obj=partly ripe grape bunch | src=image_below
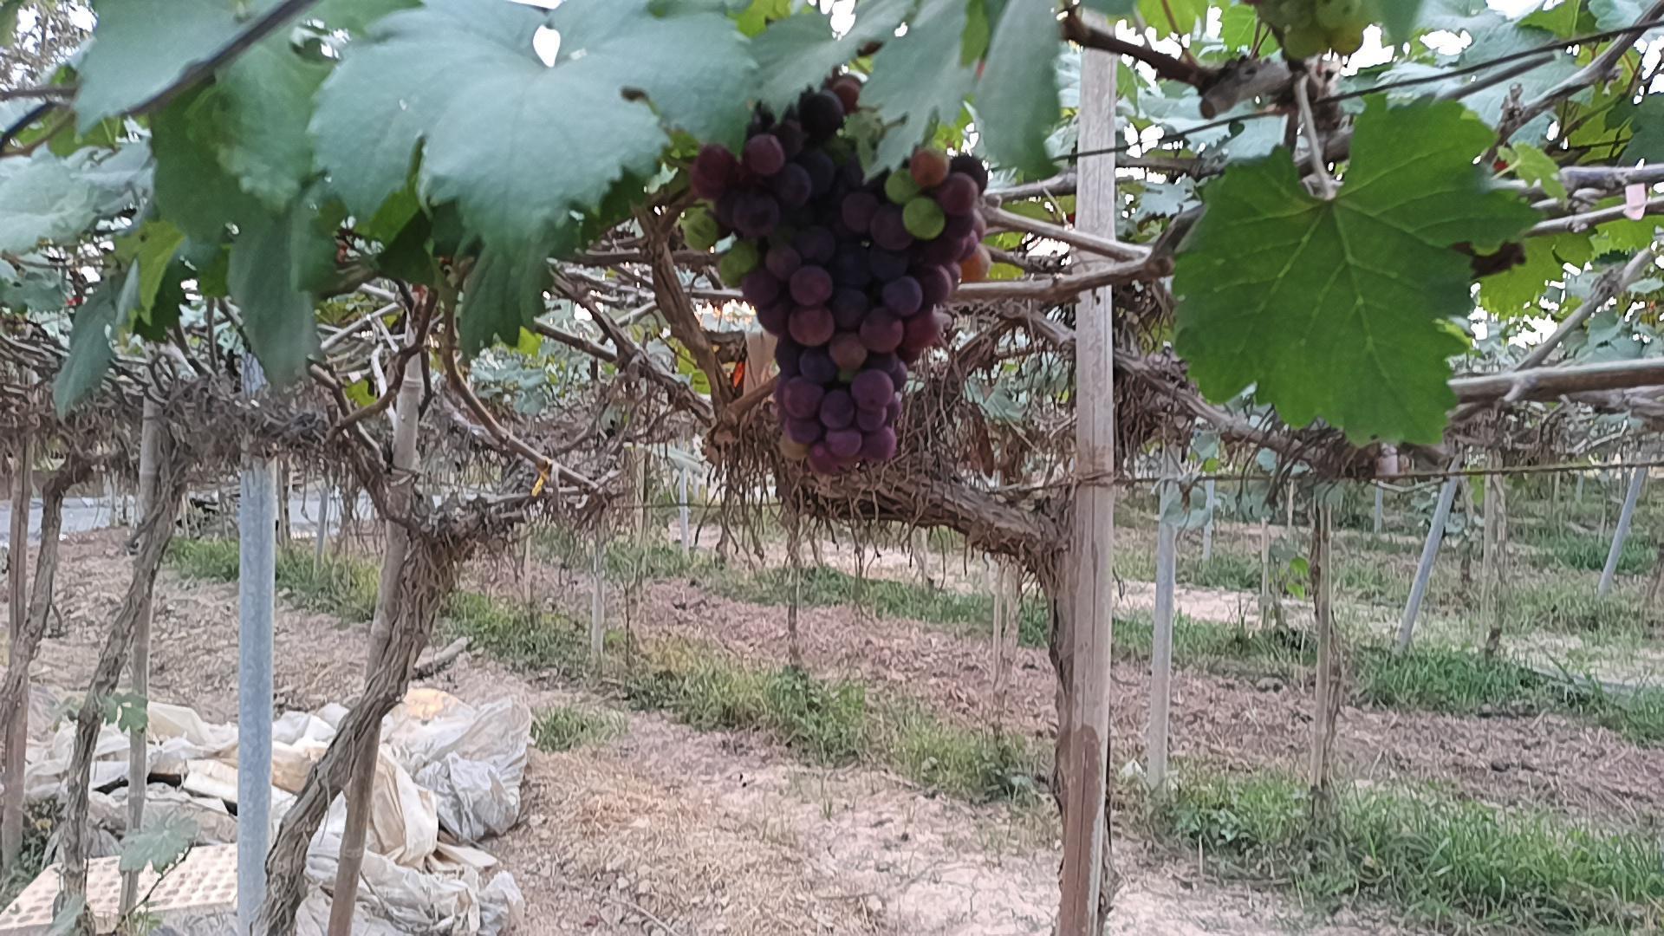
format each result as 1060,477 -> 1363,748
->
691,75 -> 985,472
